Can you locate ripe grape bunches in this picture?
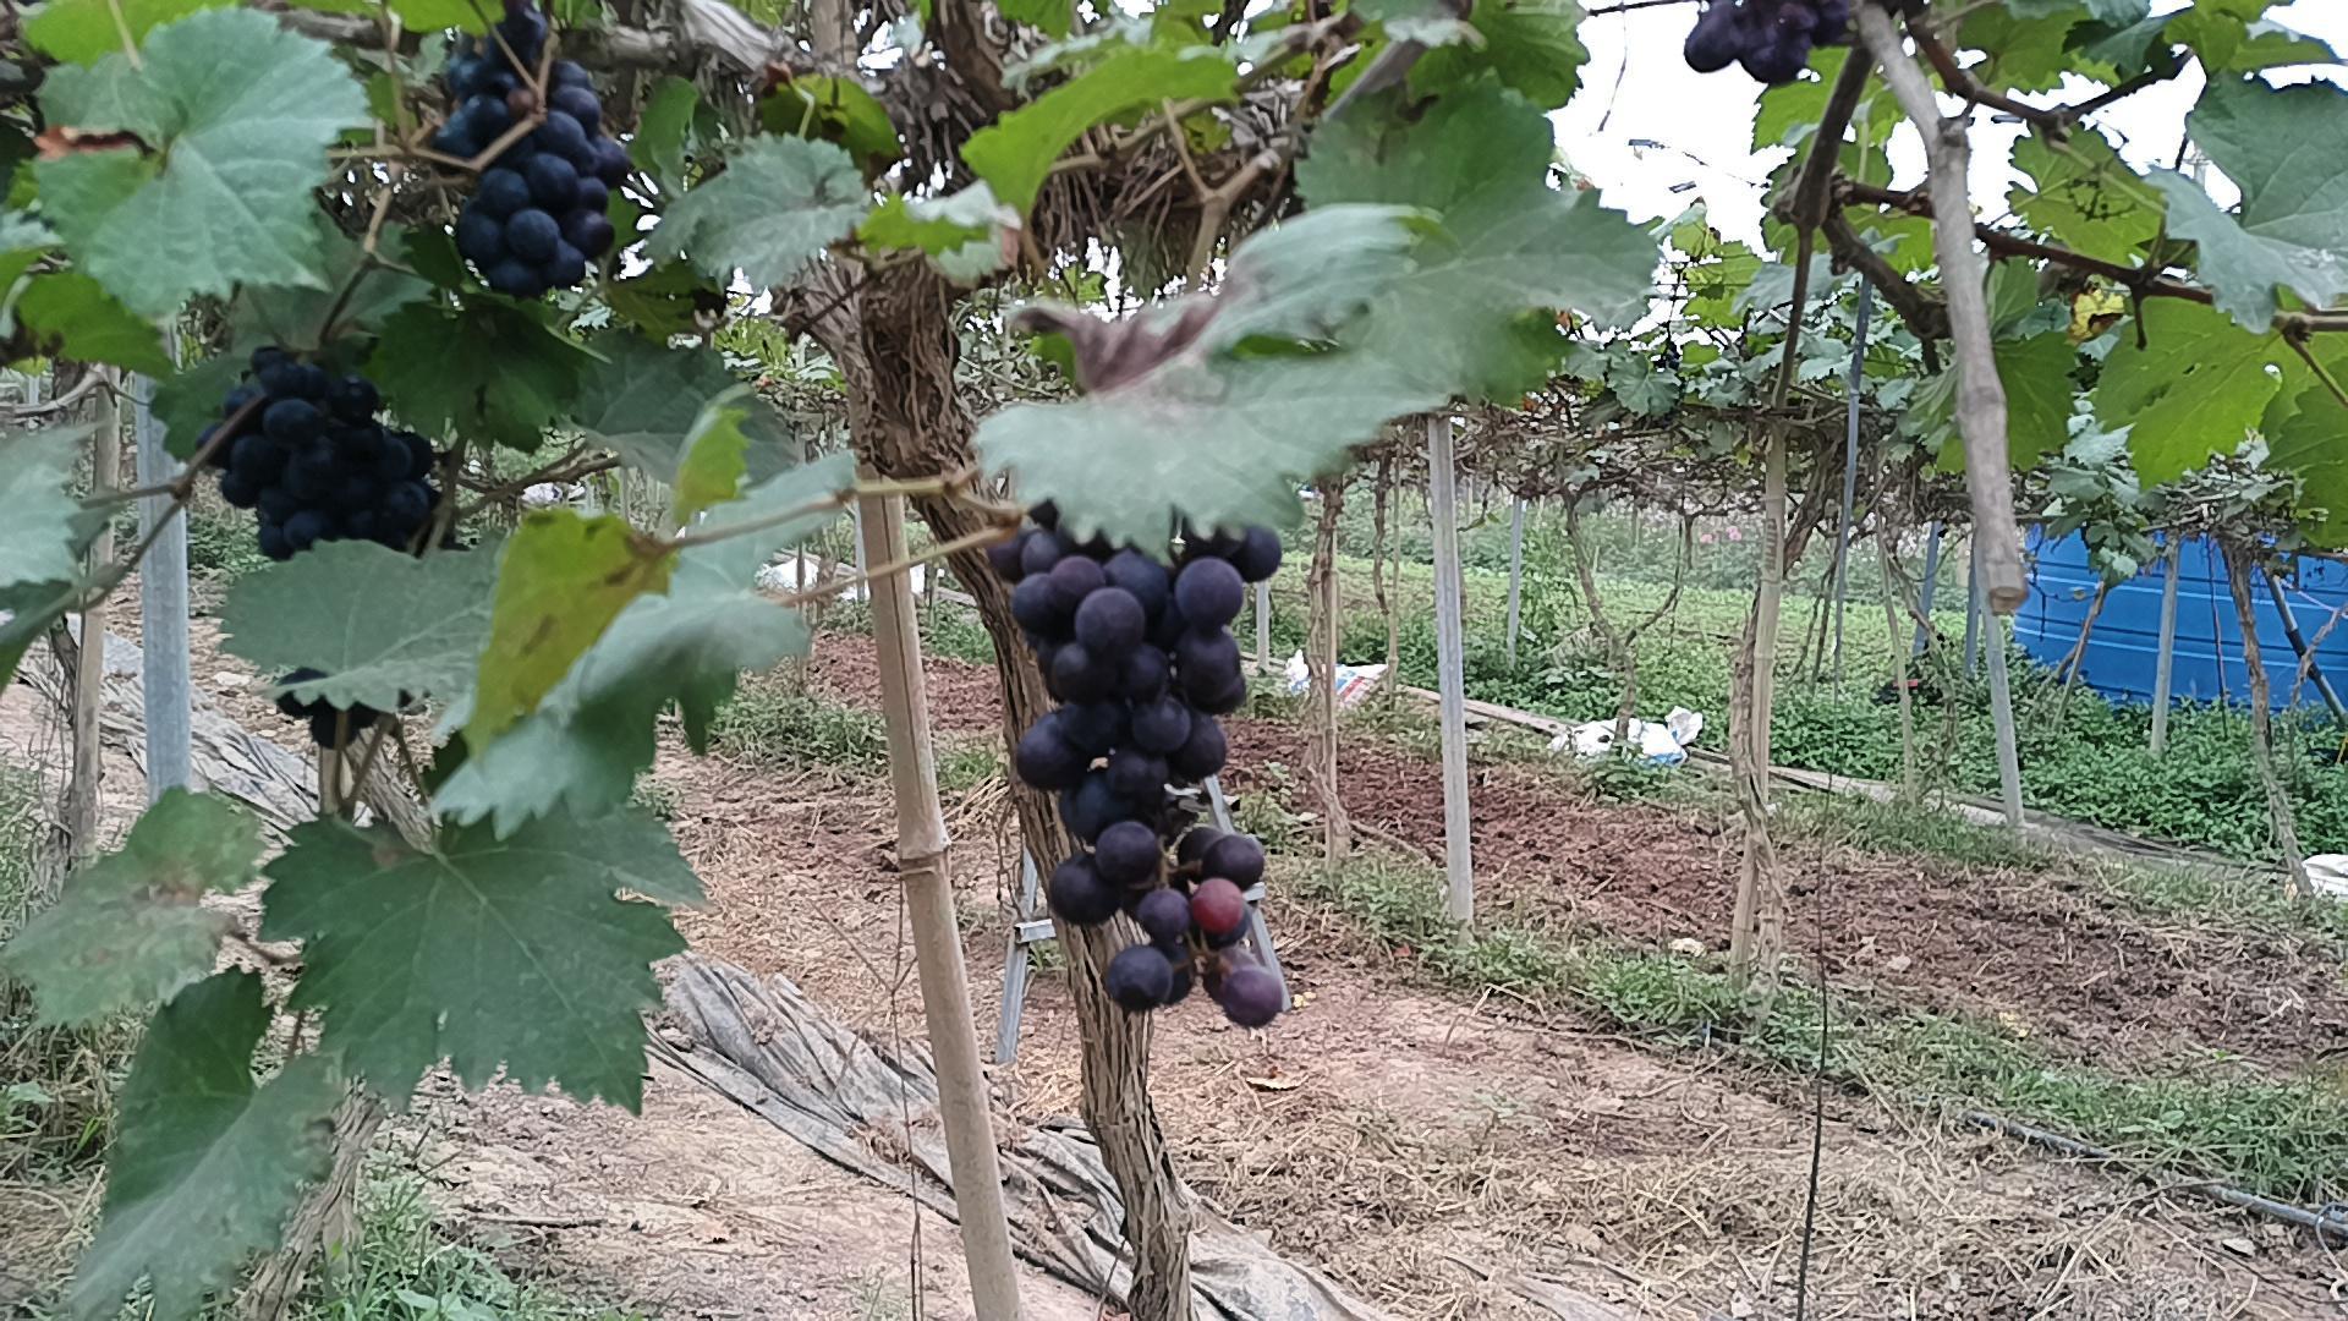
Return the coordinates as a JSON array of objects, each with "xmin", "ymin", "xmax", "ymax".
[
  {"xmin": 423, "ymin": 0, "xmax": 631, "ymax": 296},
  {"xmin": 1683, "ymin": 0, "xmax": 1856, "ymax": 86},
  {"xmin": 991, "ymin": 504, "xmax": 1285, "ymax": 1026},
  {"xmin": 207, "ymin": 347, "xmax": 441, "ymax": 559}
]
